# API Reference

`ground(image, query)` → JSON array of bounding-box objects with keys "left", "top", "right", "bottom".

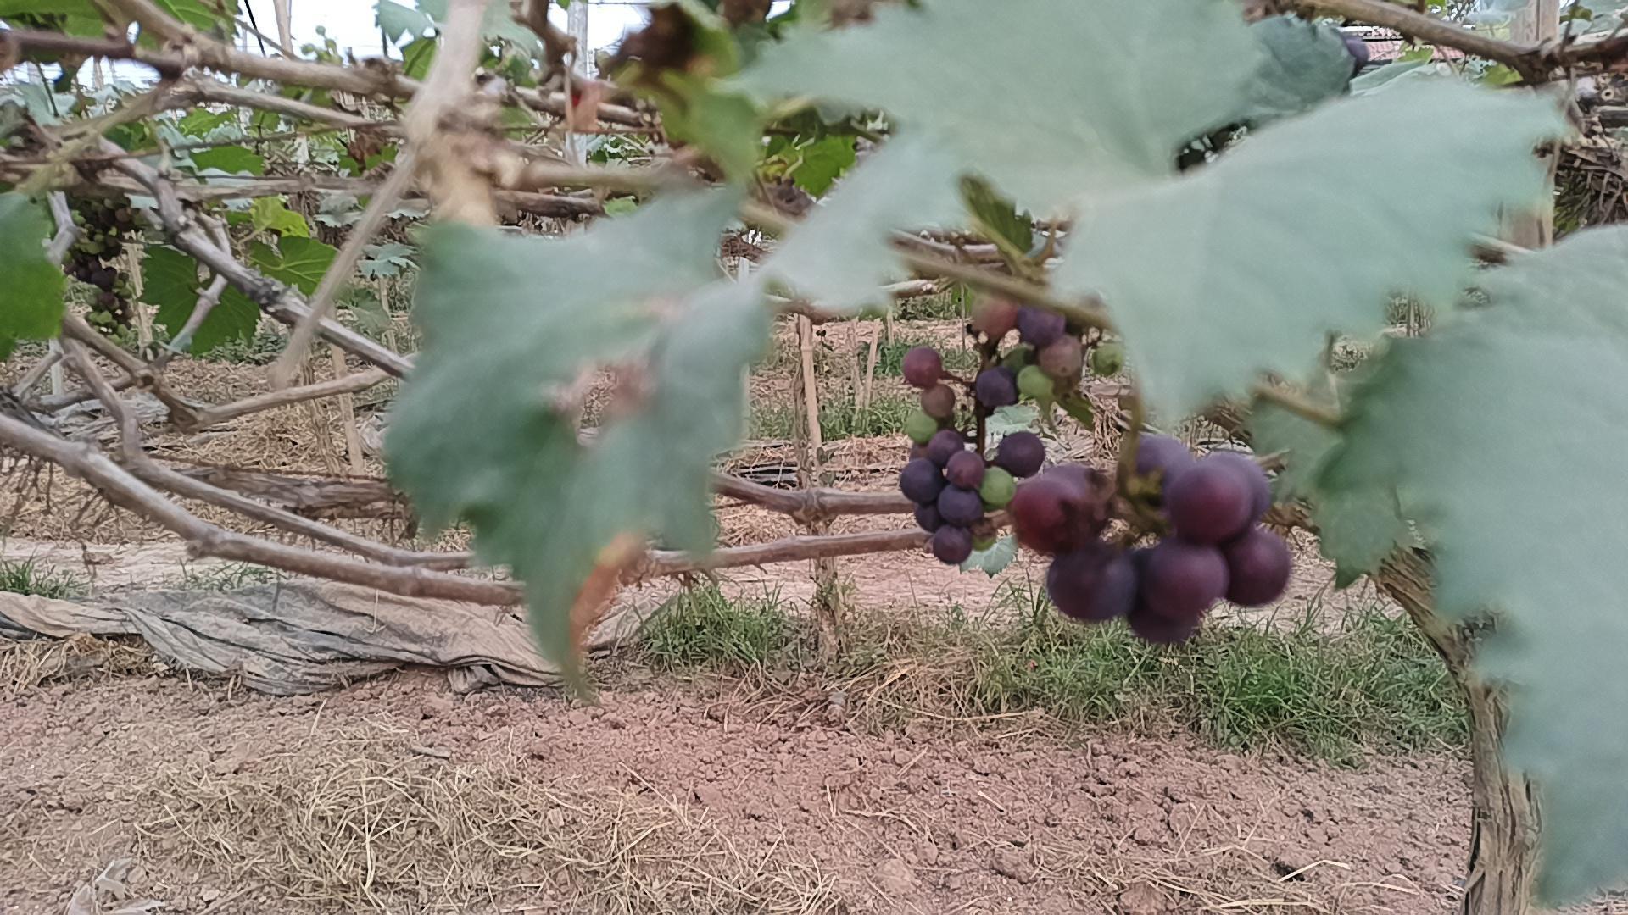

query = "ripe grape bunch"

[{"left": 1008, "top": 434, "right": 1291, "bottom": 643}]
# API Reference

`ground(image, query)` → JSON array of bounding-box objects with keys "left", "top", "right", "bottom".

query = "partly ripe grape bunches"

[
  {"left": 62, "top": 192, "right": 142, "bottom": 347},
  {"left": 898, "top": 286, "right": 1129, "bottom": 566}
]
